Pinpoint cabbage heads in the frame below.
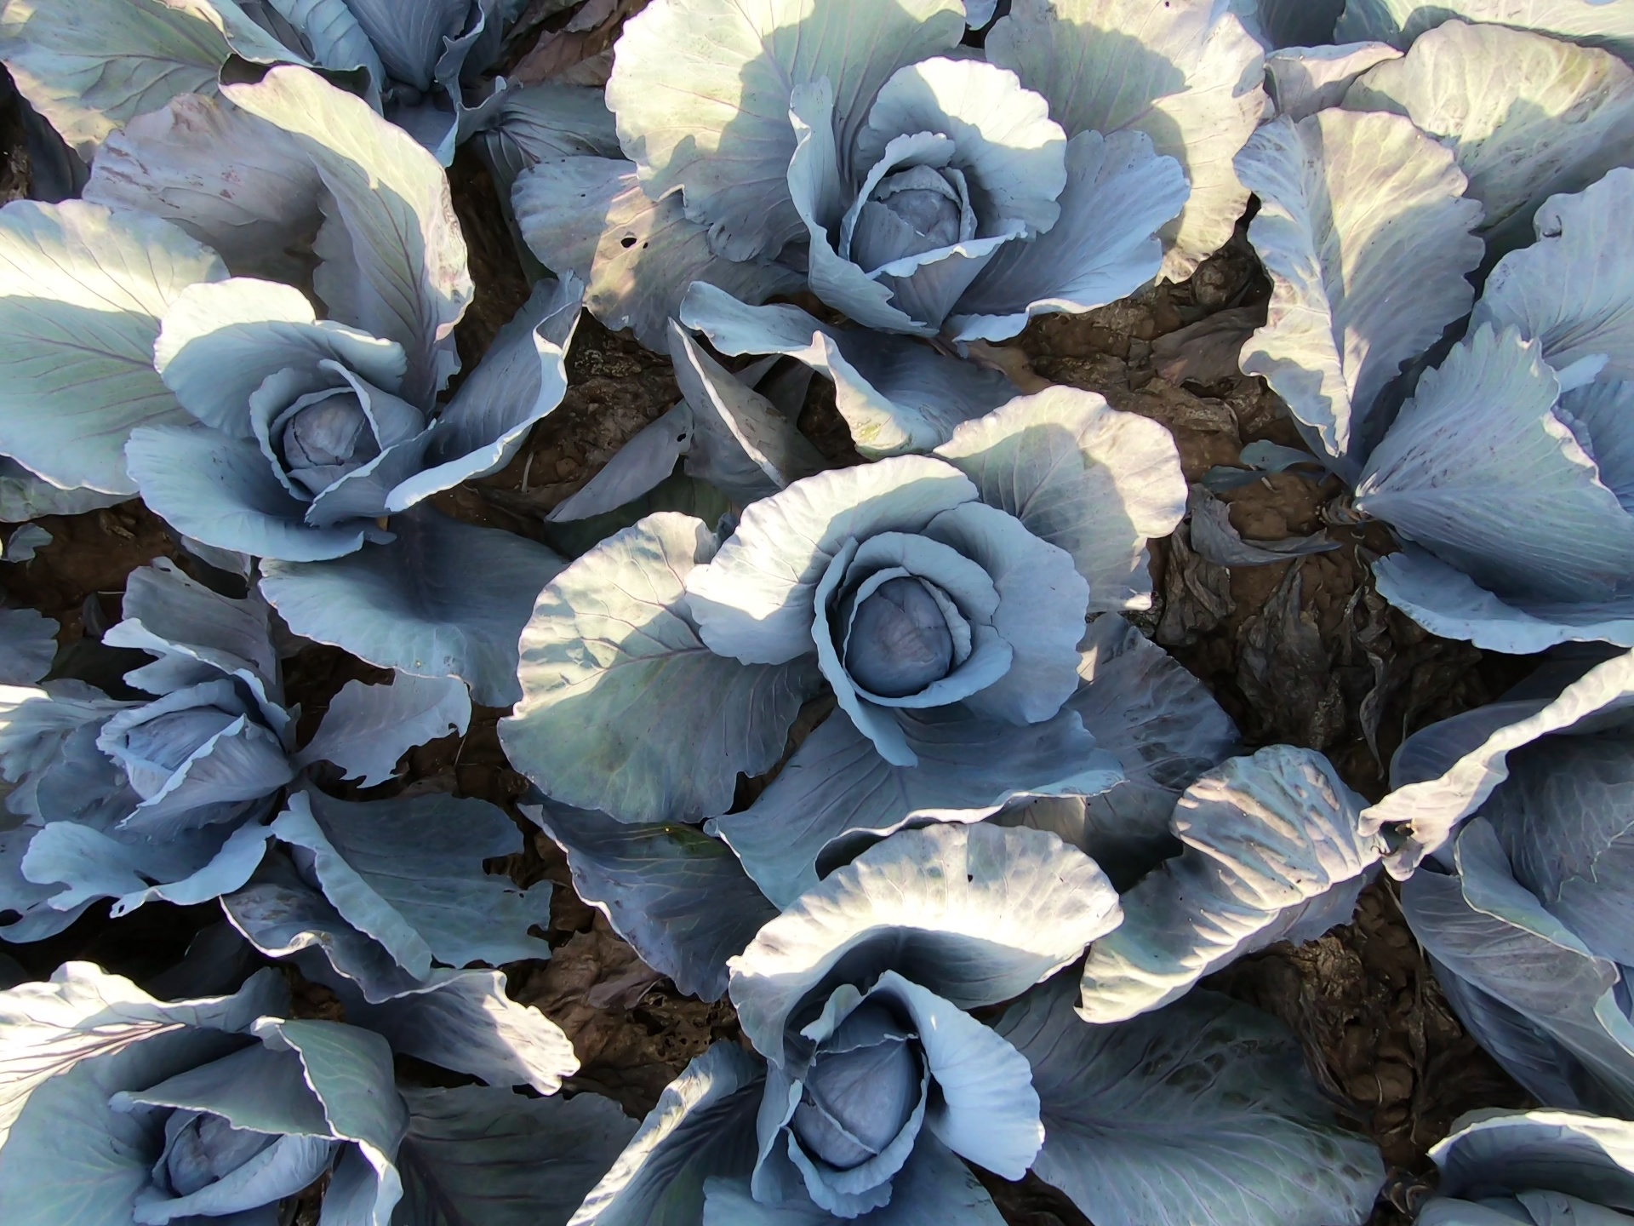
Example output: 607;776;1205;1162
853;172;971;284
844;572;957;690
285;392;411;483
799;1014;917;1168
128;712;260;808
169;1070;339;1208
